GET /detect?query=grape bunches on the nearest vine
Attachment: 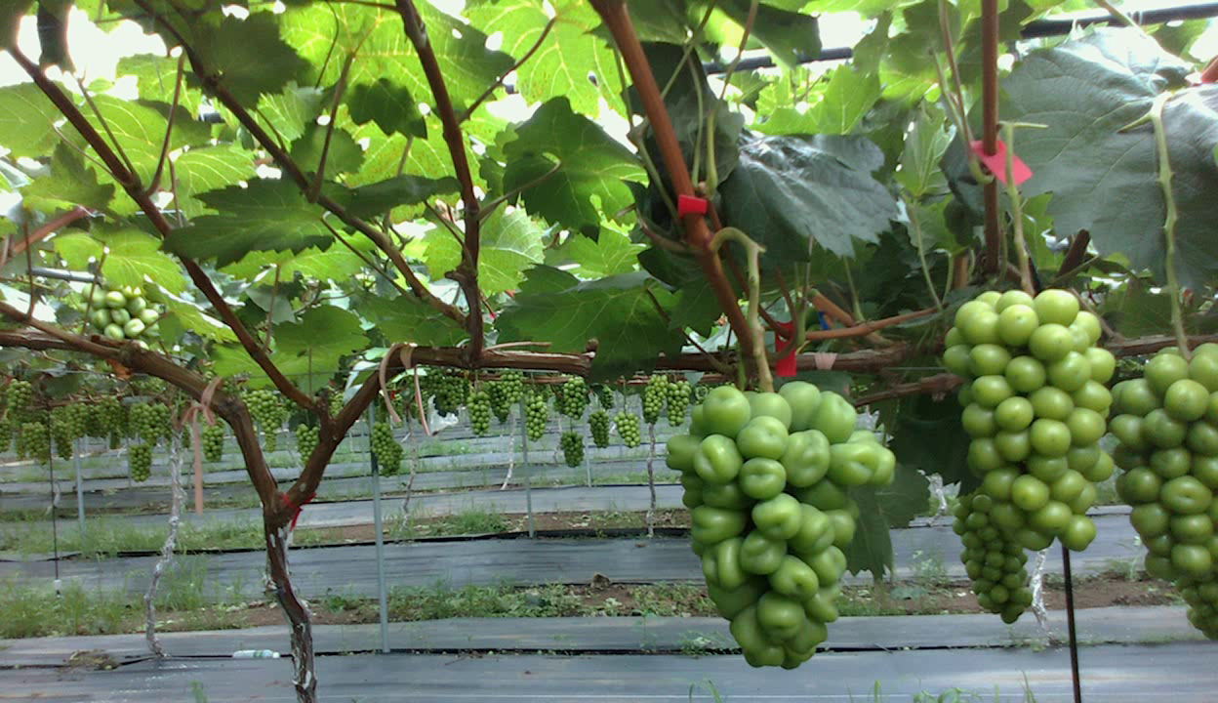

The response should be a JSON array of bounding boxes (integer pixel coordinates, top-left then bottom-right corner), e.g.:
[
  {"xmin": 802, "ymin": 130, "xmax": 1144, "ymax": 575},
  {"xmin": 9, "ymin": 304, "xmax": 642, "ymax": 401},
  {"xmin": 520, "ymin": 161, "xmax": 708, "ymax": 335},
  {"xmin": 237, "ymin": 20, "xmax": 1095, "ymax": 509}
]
[
  {"xmin": 1109, "ymin": 343, "xmax": 1217, "ymax": 641},
  {"xmin": 942, "ymin": 288, "xmax": 1116, "ymax": 552},
  {"xmin": 665, "ymin": 381, "xmax": 896, "ymax": 671}
]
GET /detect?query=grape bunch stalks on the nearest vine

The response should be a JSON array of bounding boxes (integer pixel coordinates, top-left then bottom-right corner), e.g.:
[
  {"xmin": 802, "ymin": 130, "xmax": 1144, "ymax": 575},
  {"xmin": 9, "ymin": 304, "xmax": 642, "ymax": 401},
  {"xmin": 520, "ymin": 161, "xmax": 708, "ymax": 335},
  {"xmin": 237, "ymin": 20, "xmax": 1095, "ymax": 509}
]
[
  {"xmin": 1150, "ymin": 85, "xmax": 1193, "ymax": 362},
  {"xmin": 1000, "ymin": 121, "xmax": 1035, "ymax": 297},
  {"xmin": 715, "ymin": 227, "xmax": 775, "ymax": 392}
]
